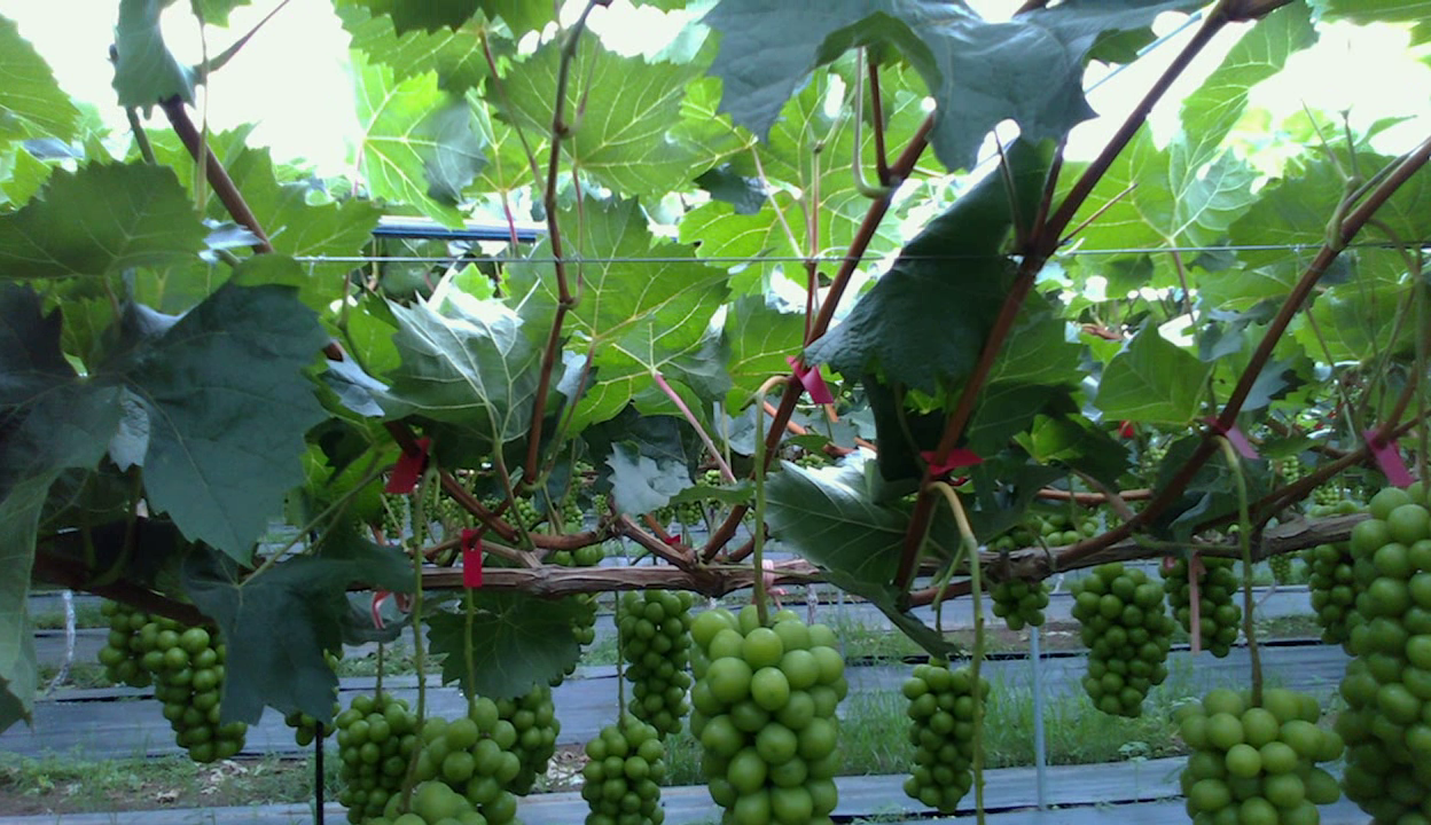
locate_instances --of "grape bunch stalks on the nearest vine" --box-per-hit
[464,590,476,718]
[1214,435,1262,707]
[753,376,787,627]
[400,453,438,814]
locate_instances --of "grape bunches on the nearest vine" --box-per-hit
[368,780,486,824]
[413,697,521,824]
[1170,685,1344,824]
[689,605,850,824]
[1336,481,1430,824]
